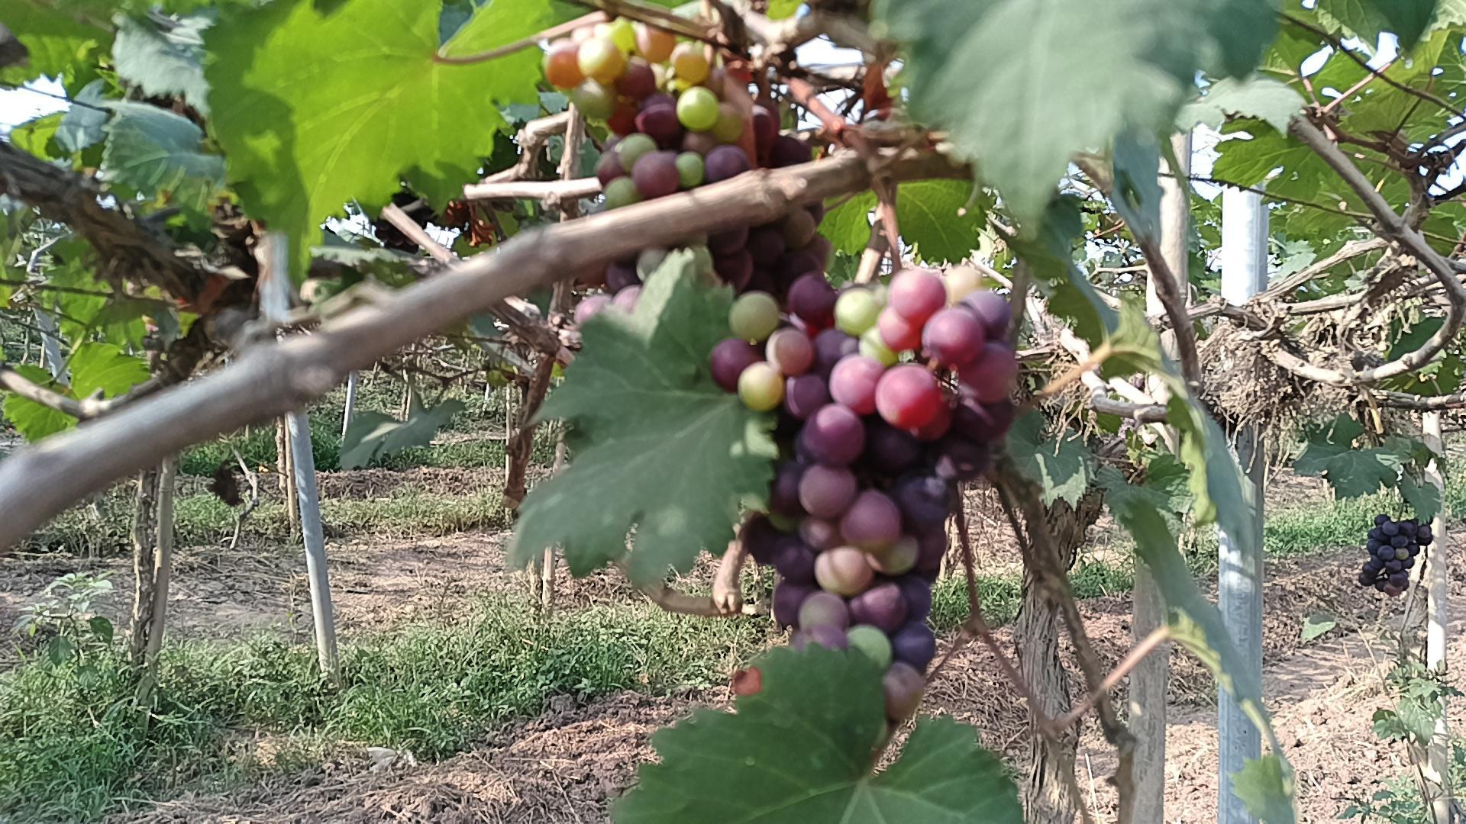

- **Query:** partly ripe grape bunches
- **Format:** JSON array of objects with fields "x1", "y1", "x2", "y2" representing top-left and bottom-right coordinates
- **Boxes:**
[
  {"x1": 710, "y1": 269, "x2": 1016, "y2": 722},
  {"x1": 544, "y1": 21, "x2": 831, "y2": 326}
]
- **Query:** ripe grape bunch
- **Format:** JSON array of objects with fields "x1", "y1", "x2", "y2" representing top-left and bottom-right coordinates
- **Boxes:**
[{"x1": 1358, "y1": 514, "x2": 1432, "y2": 596}]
